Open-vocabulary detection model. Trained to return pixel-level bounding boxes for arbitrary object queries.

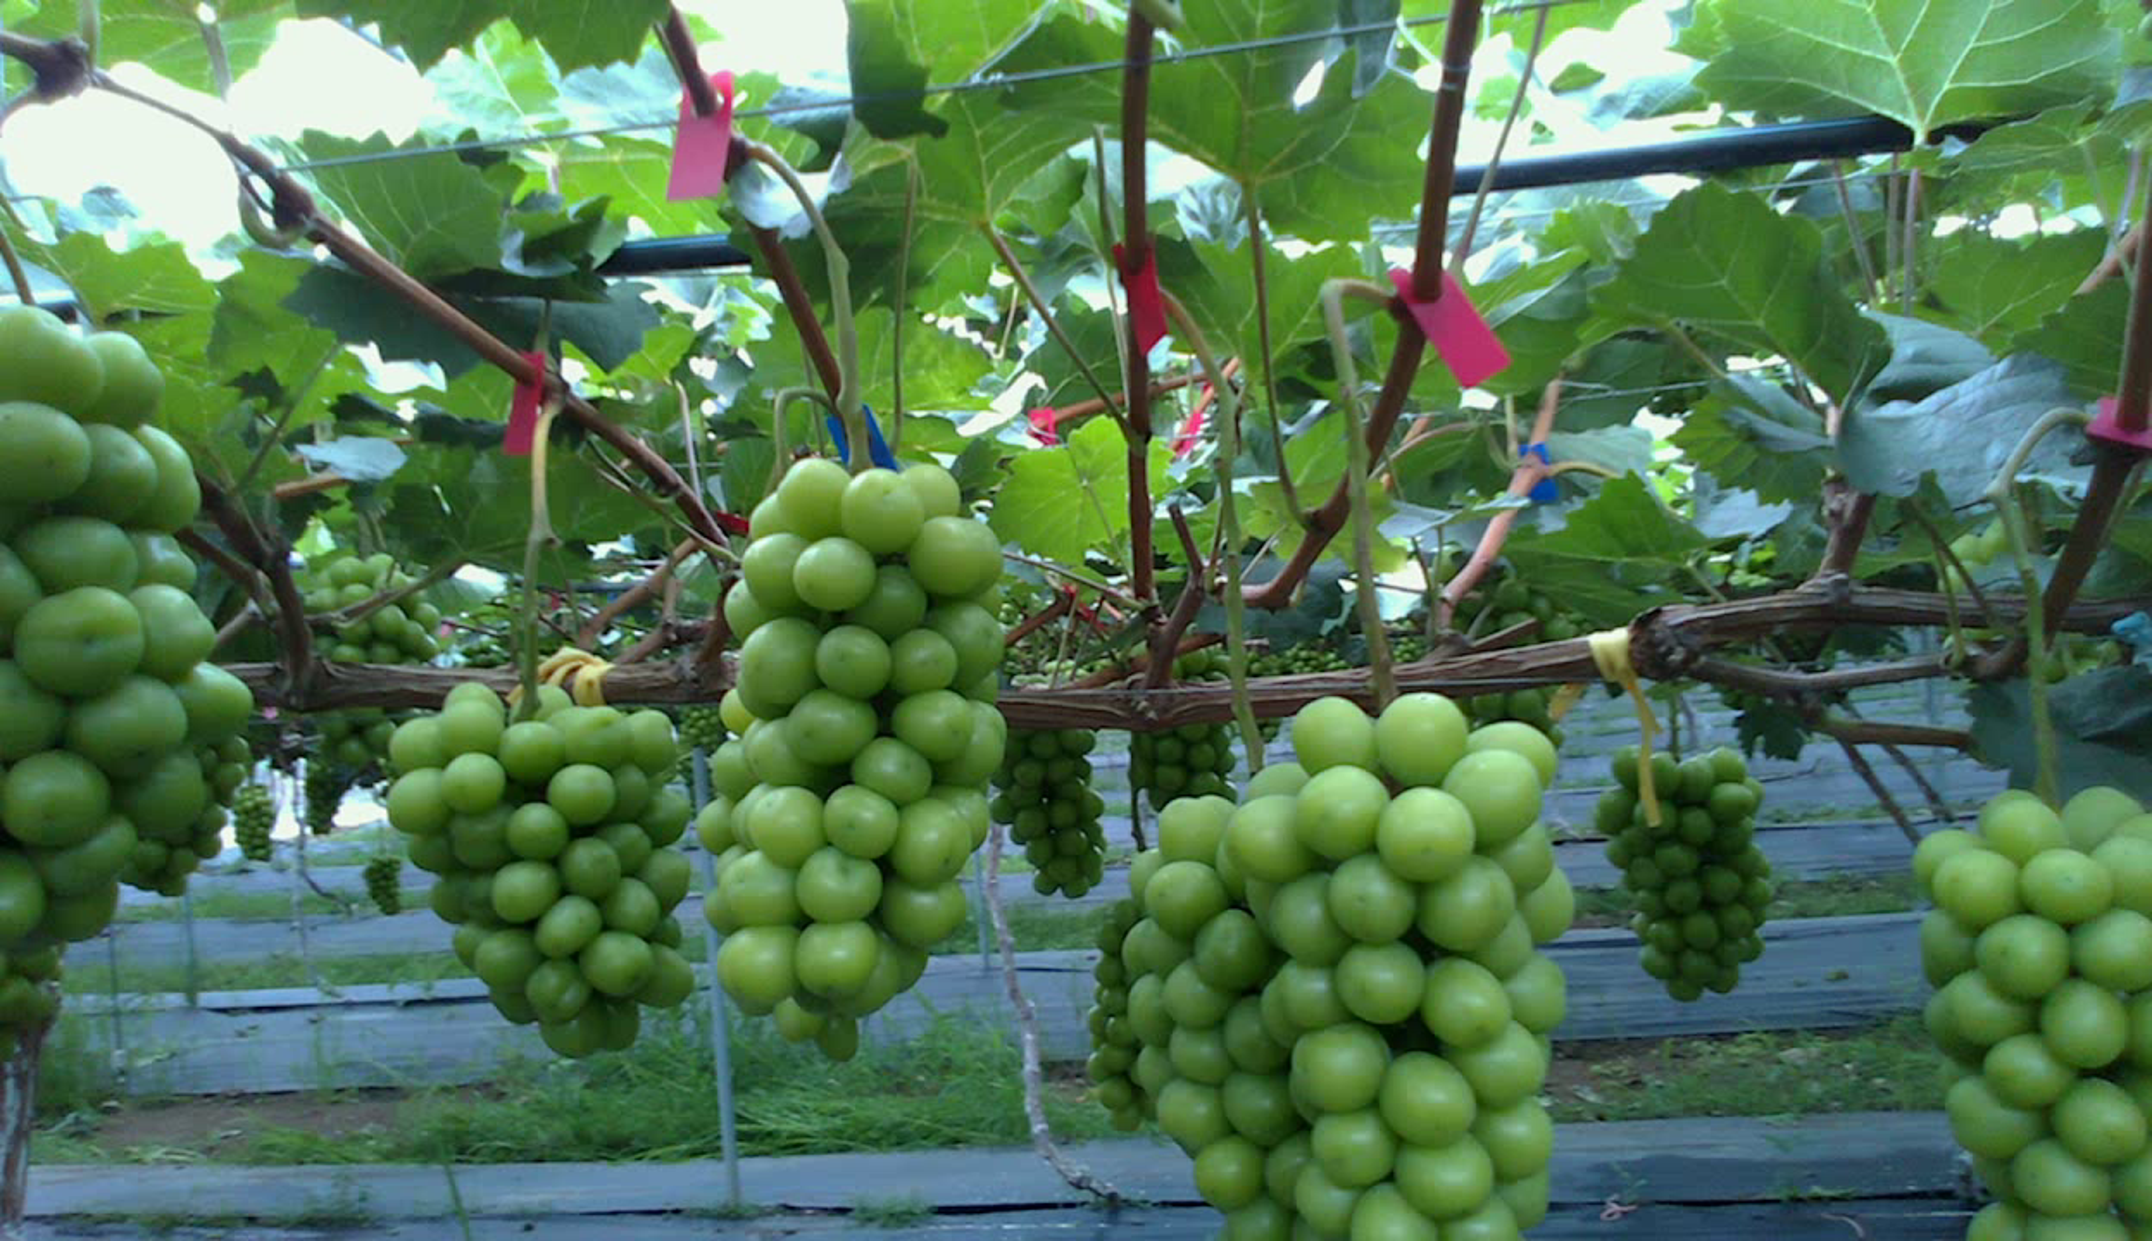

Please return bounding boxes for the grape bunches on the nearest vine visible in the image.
[1223,693,1574,1239]
[1909,786,2150,1239]
[0,307,253,955]
[383,683,697,1057]
[1119,796,1312,1239]
[698,455,1009,1057]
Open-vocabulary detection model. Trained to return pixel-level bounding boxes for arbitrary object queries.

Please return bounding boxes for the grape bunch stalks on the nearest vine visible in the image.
[1316,276,1400,707]
[748,140,869,471]
[1981,405,2092,807]
[1162,288,1267,772]
[519,436,560,717]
